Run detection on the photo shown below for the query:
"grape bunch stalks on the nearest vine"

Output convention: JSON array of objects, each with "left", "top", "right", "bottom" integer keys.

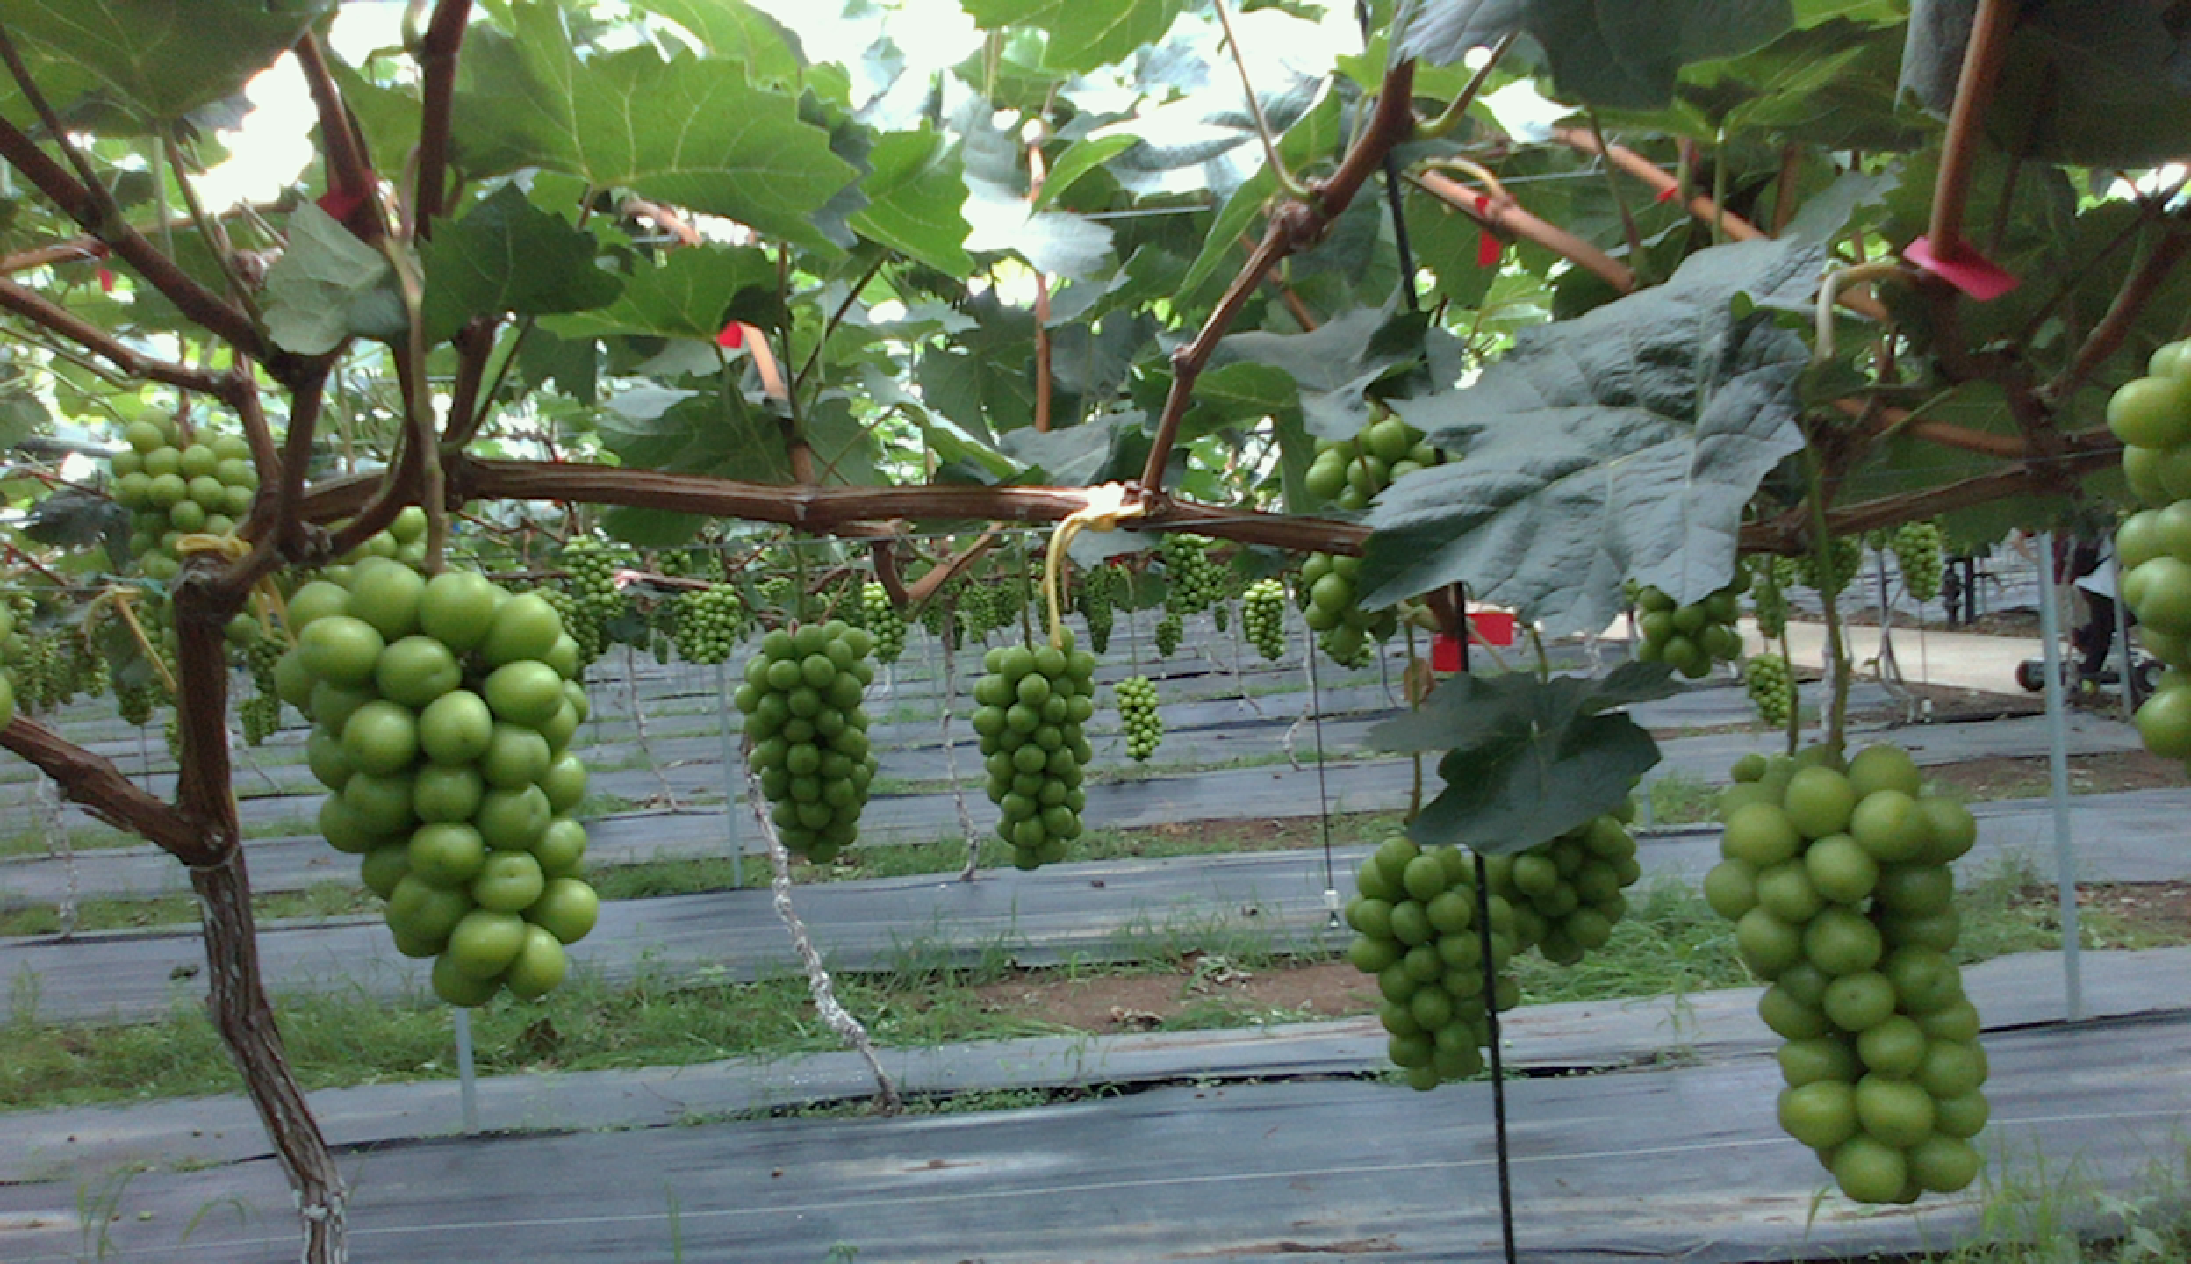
[
  {"left": 381, "top": 228, "right": 448, "bottom": 574},
  {"left": 1798, "top": 260, "right": 1903, "bottom": 772}
]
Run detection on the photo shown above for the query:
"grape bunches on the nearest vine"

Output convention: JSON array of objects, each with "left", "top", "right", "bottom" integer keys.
[
  {"left": 269, "top": 553, "right": 599, "bottom": 1006},
  {"left": 1699, "top": 737, "right": 1996, "bottom": 1203}
]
